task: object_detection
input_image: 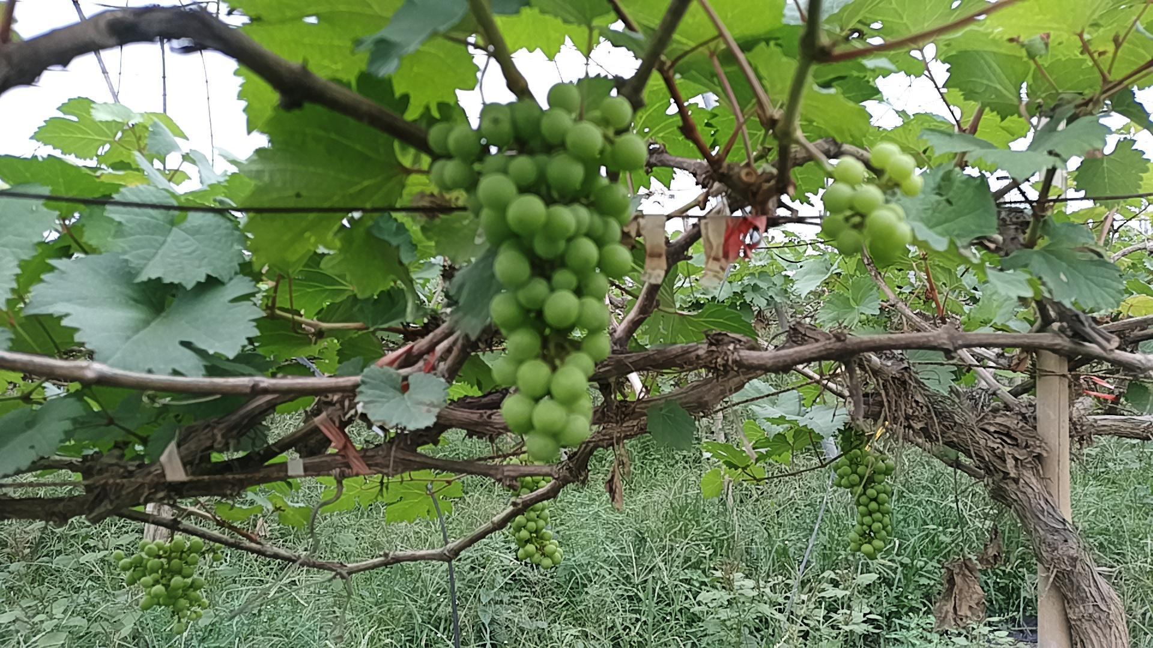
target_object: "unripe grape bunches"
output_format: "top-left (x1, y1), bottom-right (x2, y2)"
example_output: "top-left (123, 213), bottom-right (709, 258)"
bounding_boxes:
top-left (429, 79), bottom-right (647, 462)
top-left (501, 452), bottom-right (563, 568)
top-left (825, 142), bottom-right (922, 267)
top-left (114, 537), bottom-right (222, 634)
top-left (832, 430), bottom-right (895, 559)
